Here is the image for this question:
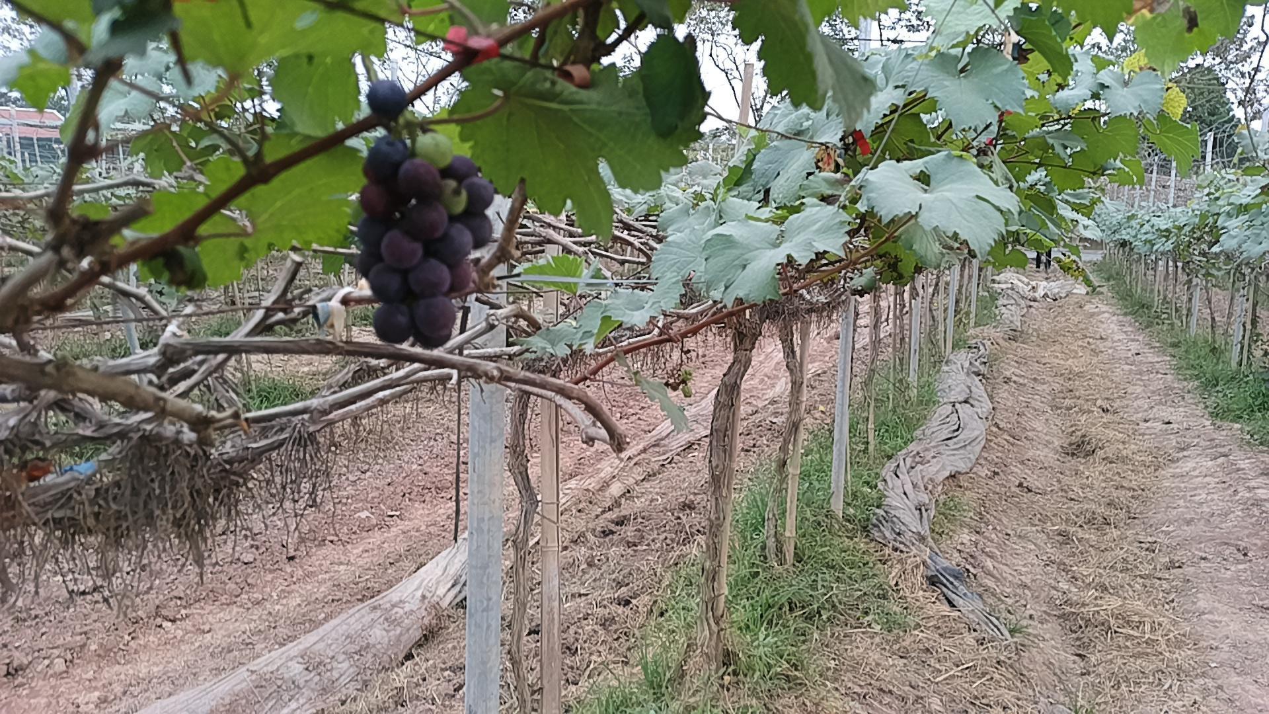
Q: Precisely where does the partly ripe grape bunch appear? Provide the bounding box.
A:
[354,77,495,347]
